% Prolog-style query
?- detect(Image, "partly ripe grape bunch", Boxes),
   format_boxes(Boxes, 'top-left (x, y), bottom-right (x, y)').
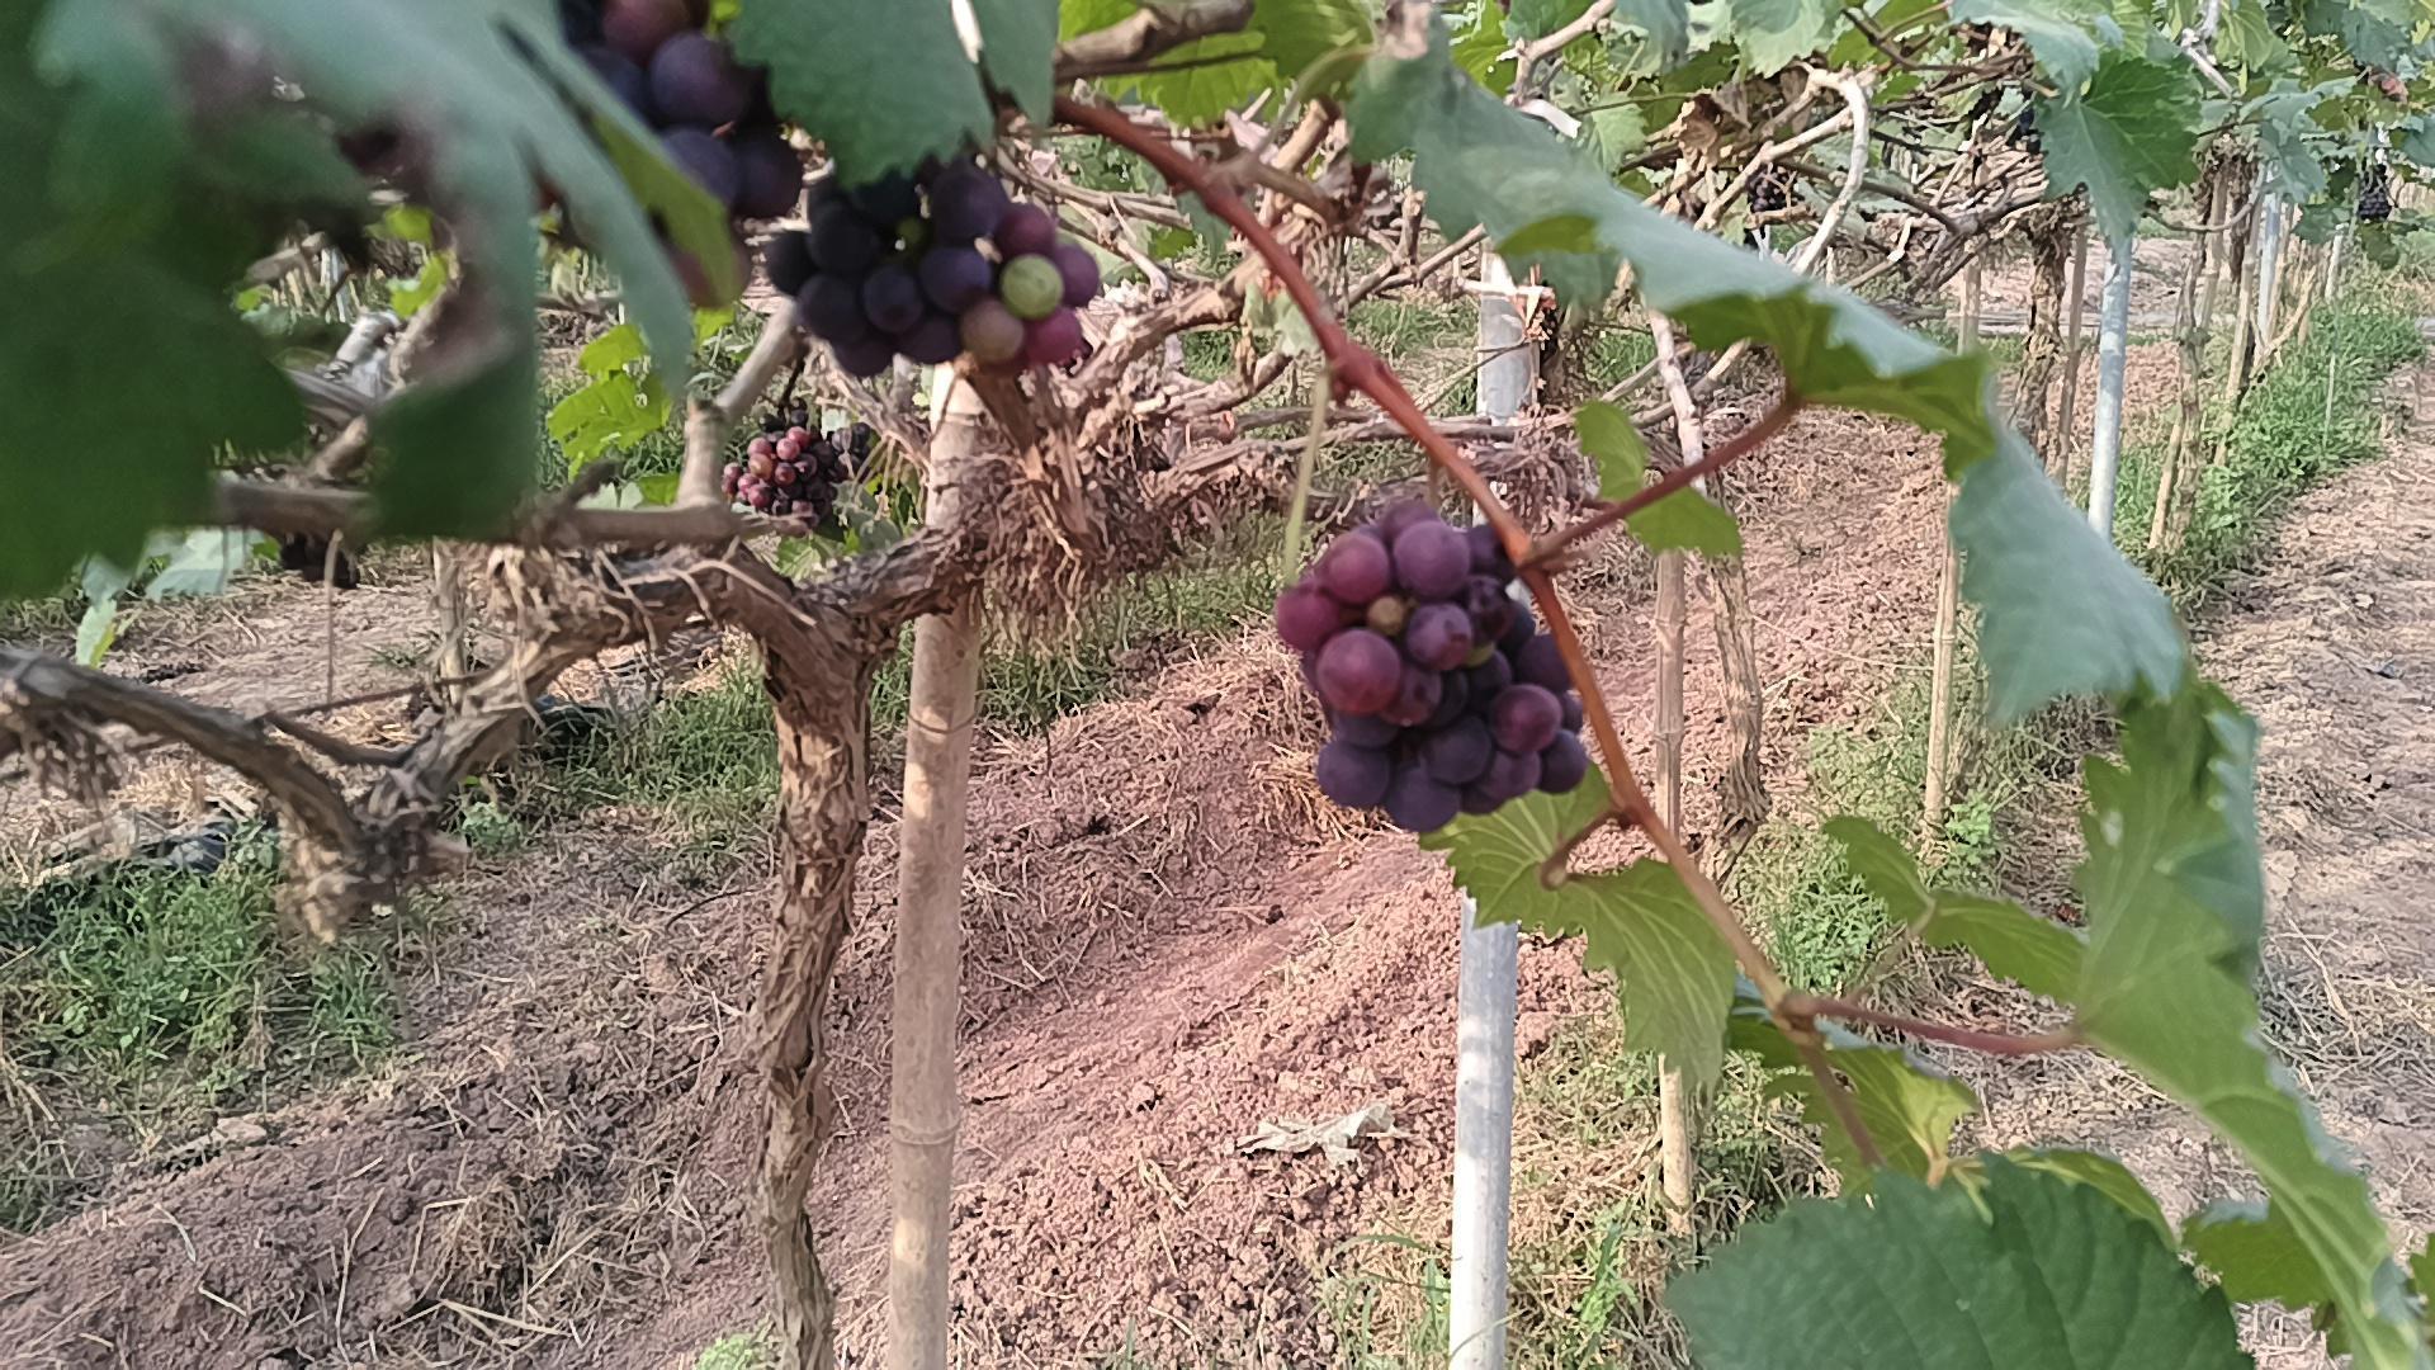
top-left (765, 157), bottom-right (1100, 377)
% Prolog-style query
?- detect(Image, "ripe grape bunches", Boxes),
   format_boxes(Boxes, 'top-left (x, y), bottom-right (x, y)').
top-left (727, 405), bottom-right (871, 529)
top-left (559, 0), bottom-right (800, 308)
top-left (1276, 501), bottom-right (1592, 833)
top-left (276, 534), bottom-right (359, 589)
